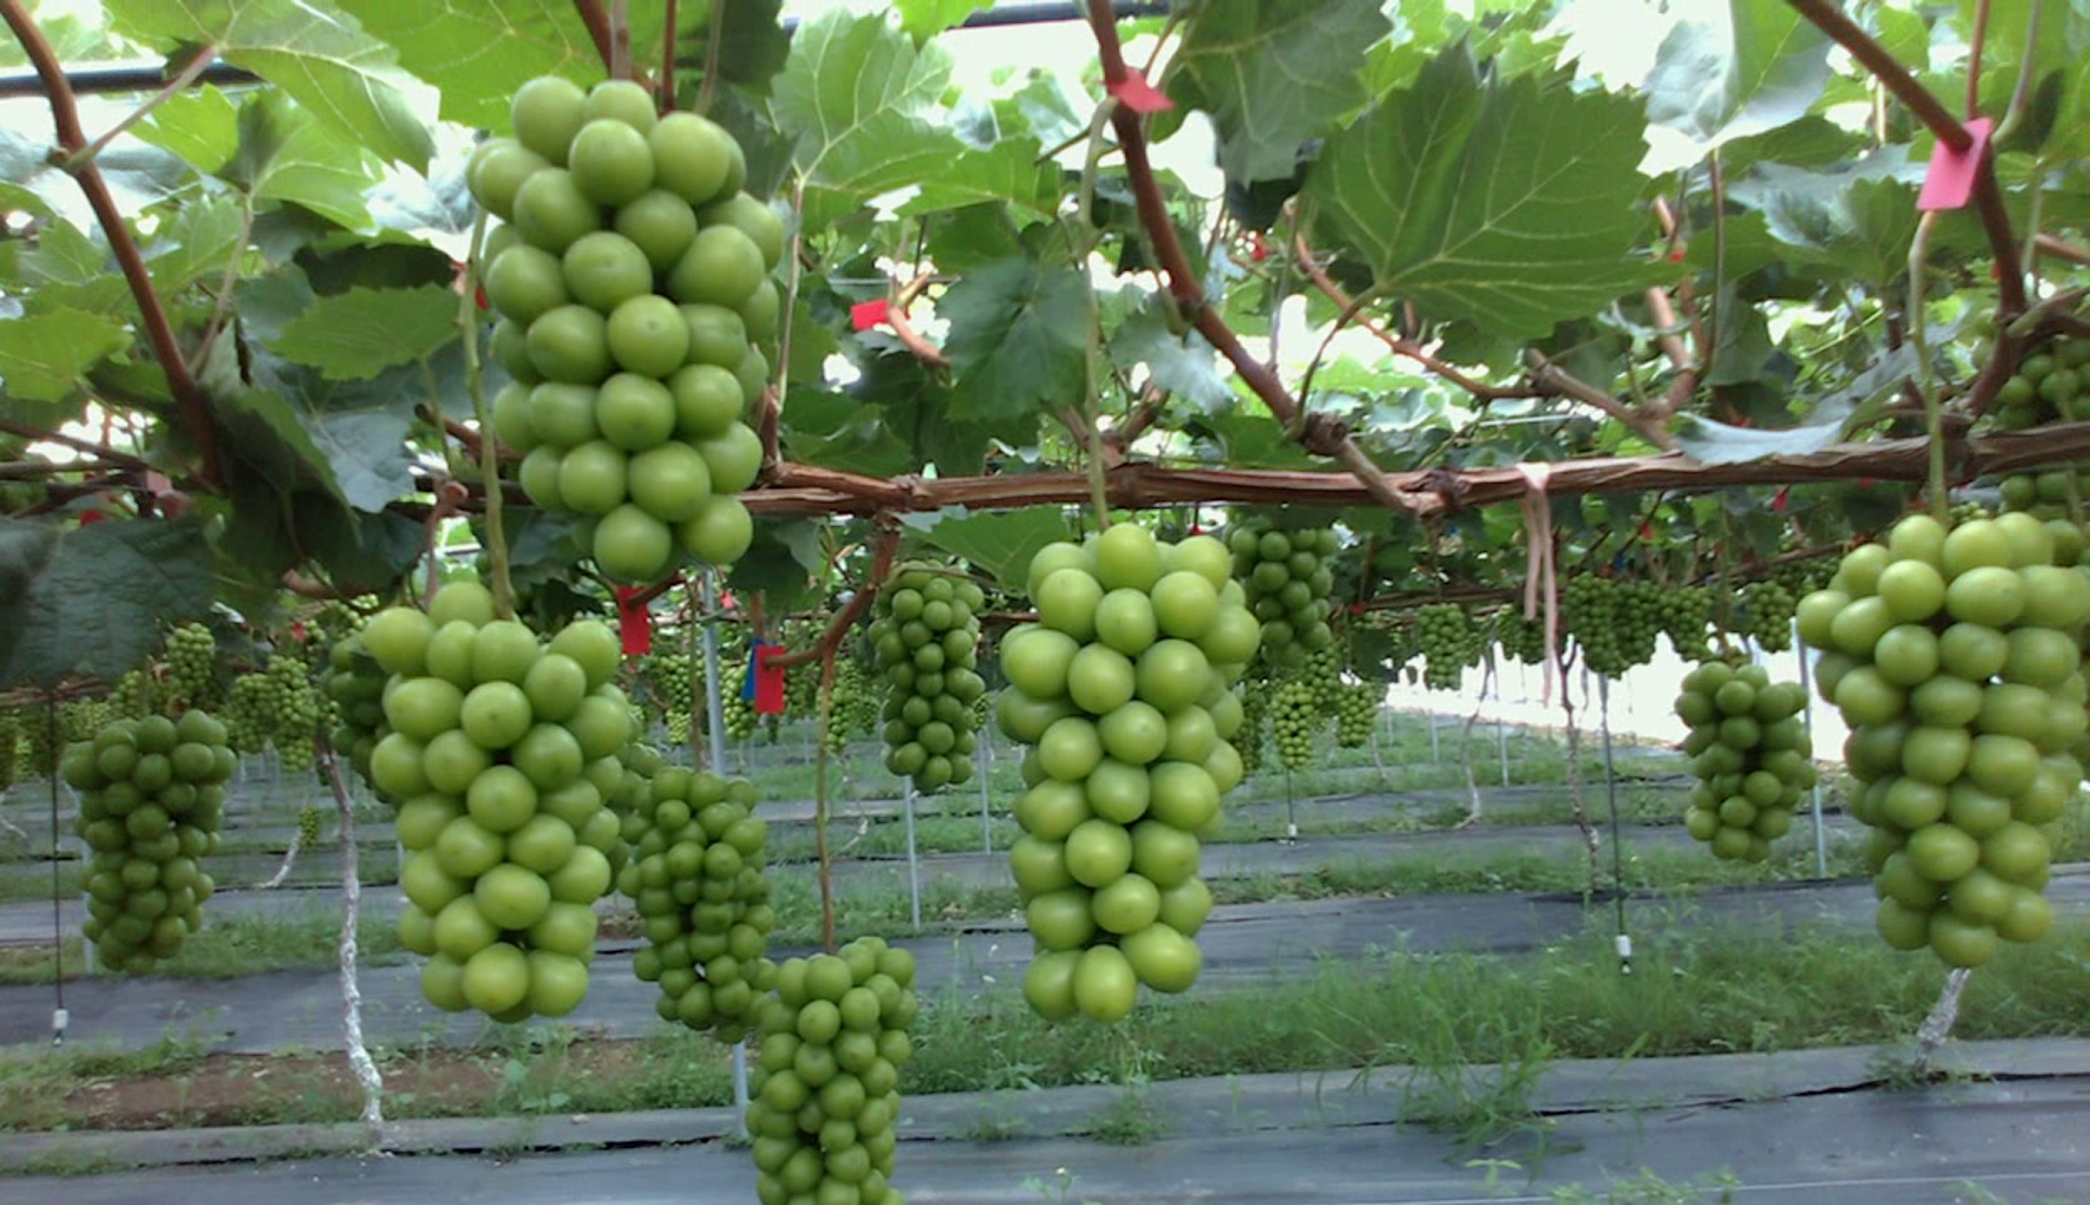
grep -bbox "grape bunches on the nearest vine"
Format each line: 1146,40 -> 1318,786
1794,510 -> 2088,969
464,77 -> 785,584
362,581 -> 633,1026
995,524 -> 1263,1024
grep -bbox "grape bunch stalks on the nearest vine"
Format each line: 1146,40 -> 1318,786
1906,213 -> 1948,526
459,208 -> 521,621
1075,95 -> 1119,534
611,2 -> 633,79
